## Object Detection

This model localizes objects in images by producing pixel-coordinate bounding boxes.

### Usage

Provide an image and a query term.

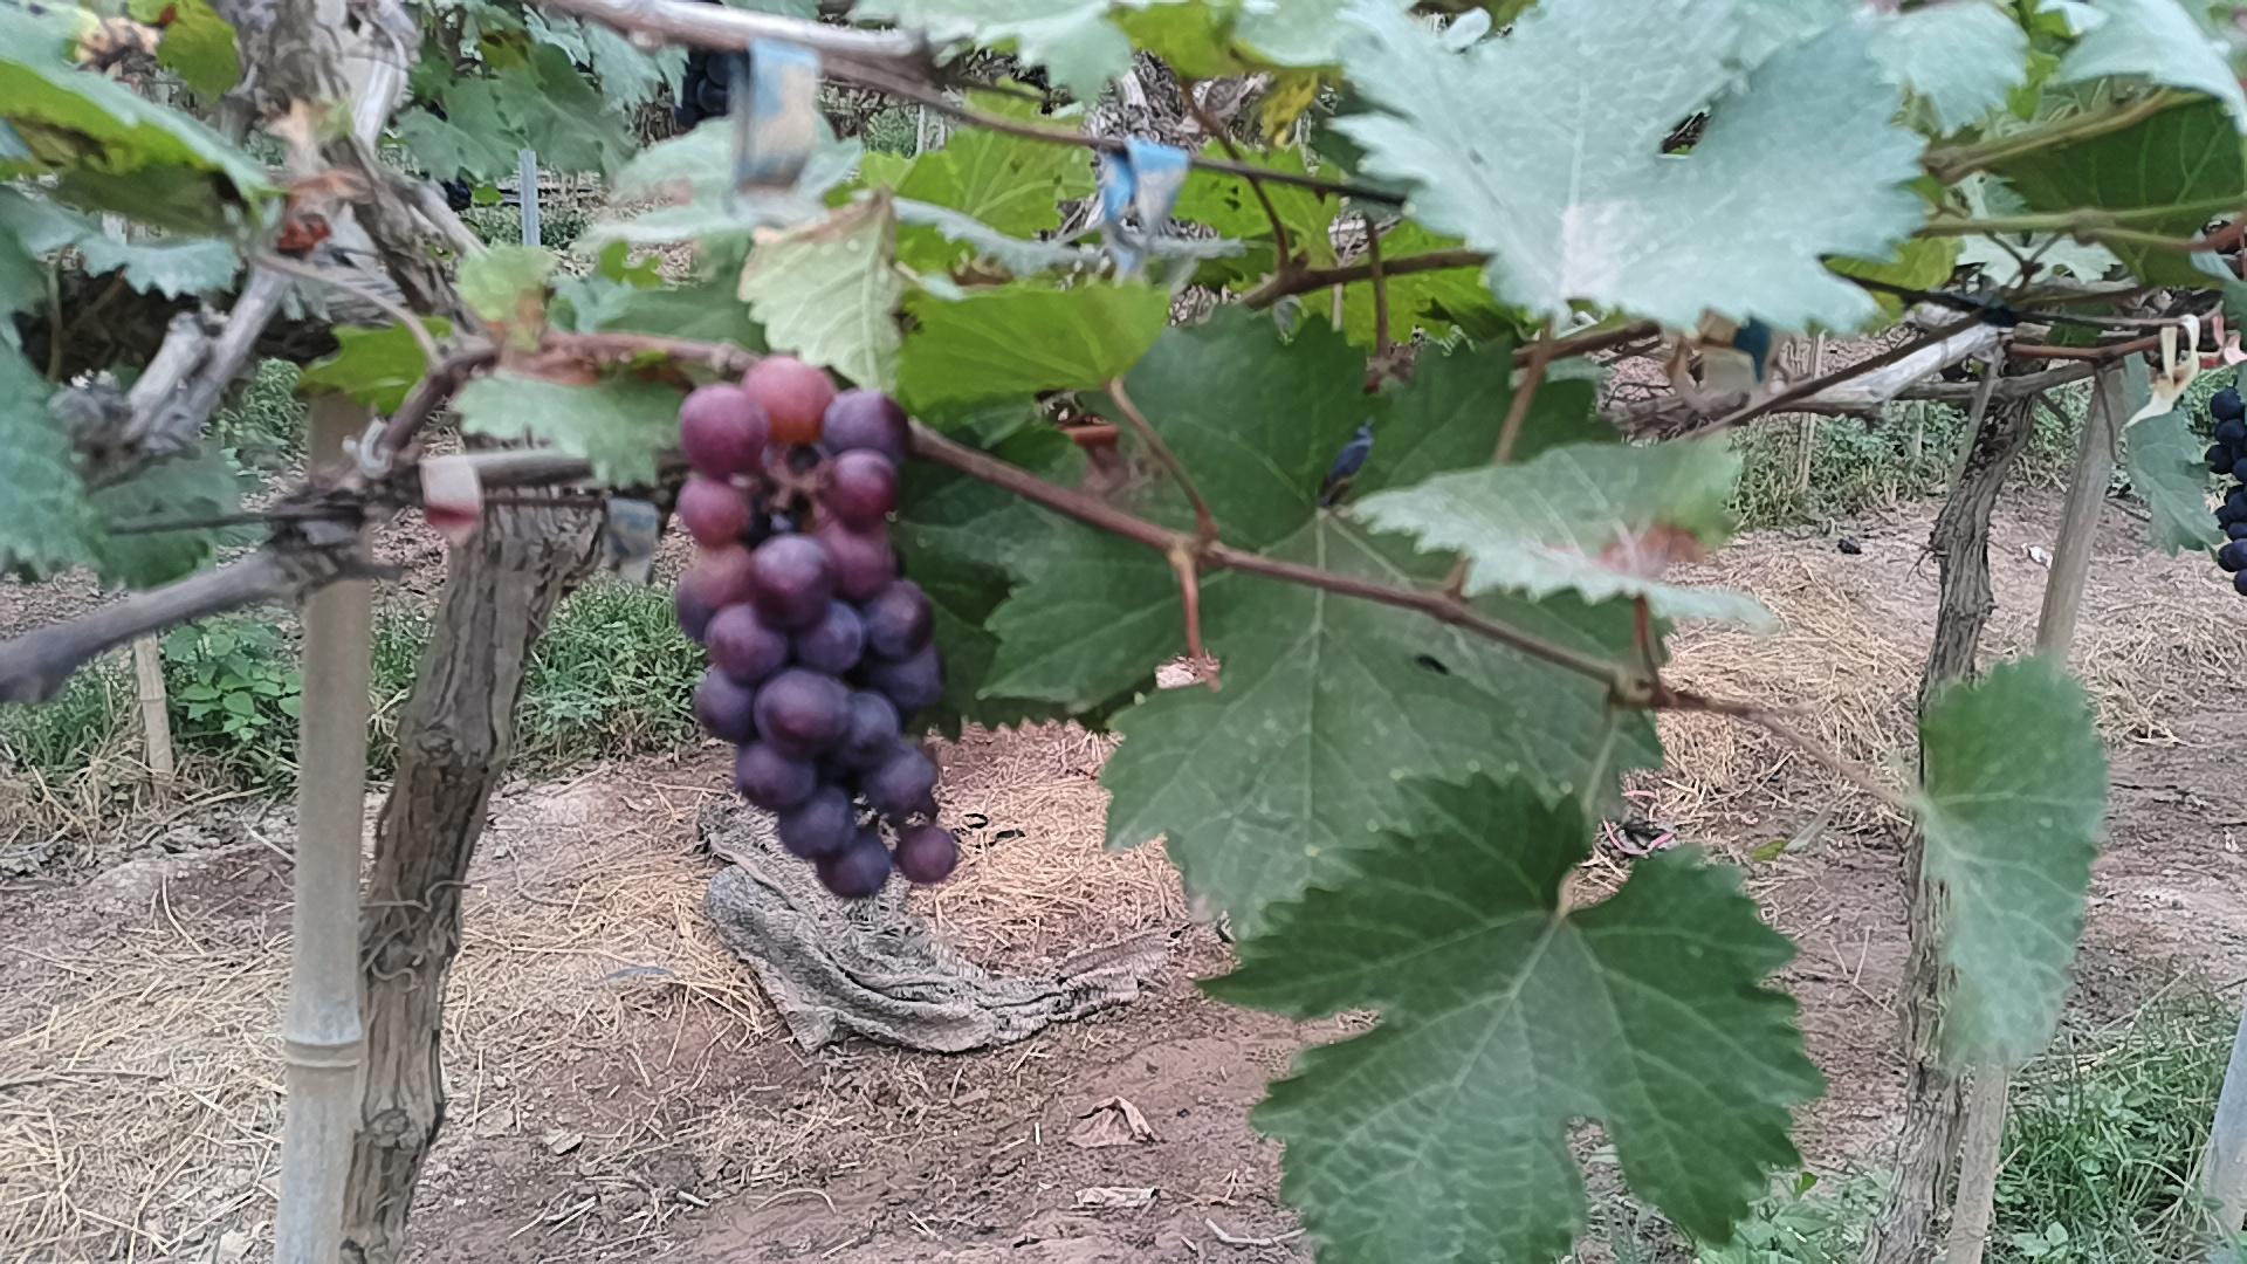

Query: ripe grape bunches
[675,356,955,898]
[2204,386,2246,597]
